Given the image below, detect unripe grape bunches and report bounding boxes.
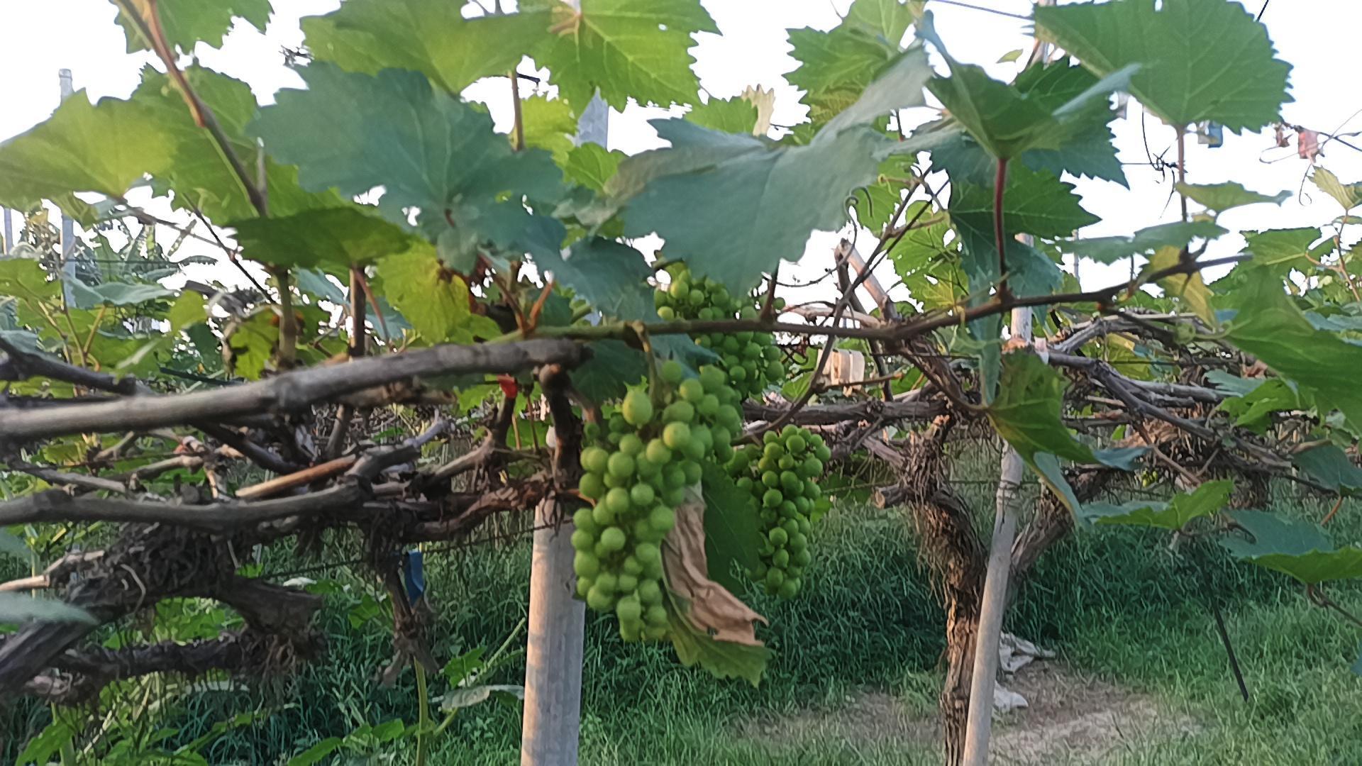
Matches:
[724,425,830,598]
[572,362,739,642]
[655,262,786,399]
